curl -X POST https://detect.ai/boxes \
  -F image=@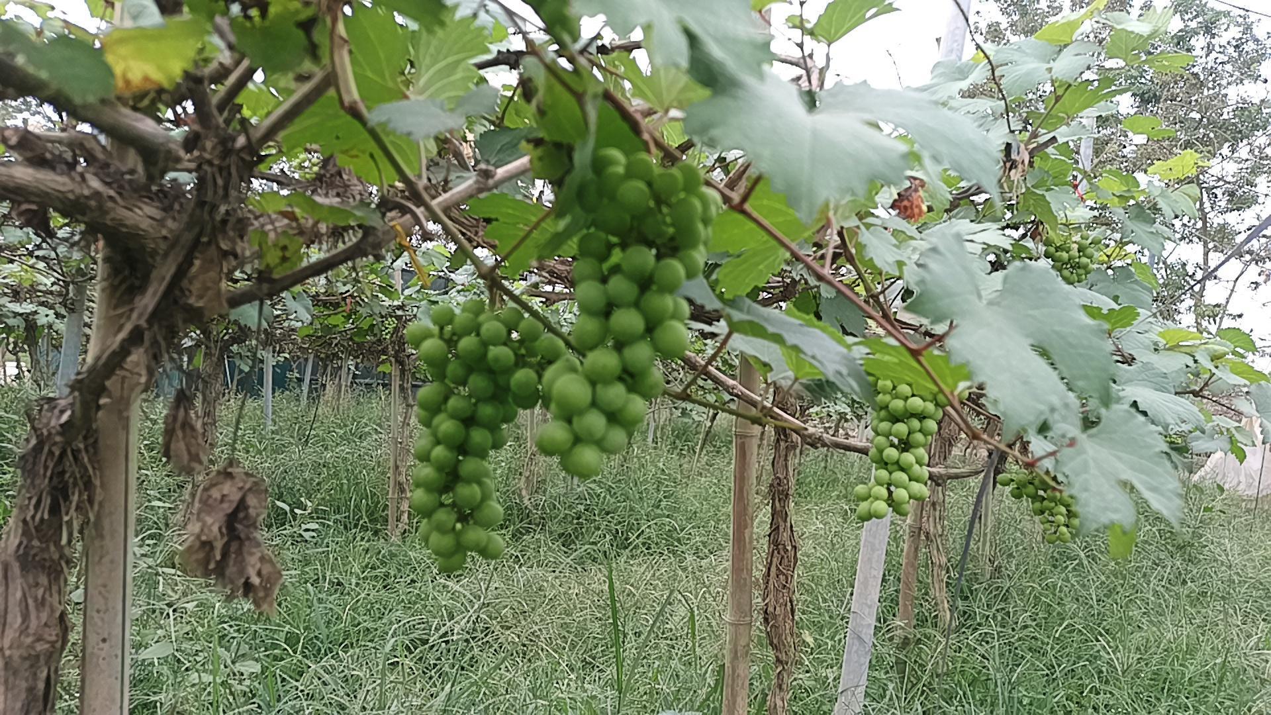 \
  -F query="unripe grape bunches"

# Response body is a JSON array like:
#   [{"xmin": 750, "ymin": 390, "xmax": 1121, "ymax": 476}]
[
  {"xmin": 408, "ymin": 300, "xmax": 563, "ymax": 572},
  {"xmin": 854, "ymin": 379, "xmax": 969, "ymax": 521},
  {"xmin": 532, "ymin": 146, "xmax": 721, "ymax": 477},
  {"xmin": 998, "ymin": 467, "xmax": 1078, "ymax": 543},
  {"xmin": 1043, "ymin": 228, "xmax": 1100, "ymax": 284}
]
